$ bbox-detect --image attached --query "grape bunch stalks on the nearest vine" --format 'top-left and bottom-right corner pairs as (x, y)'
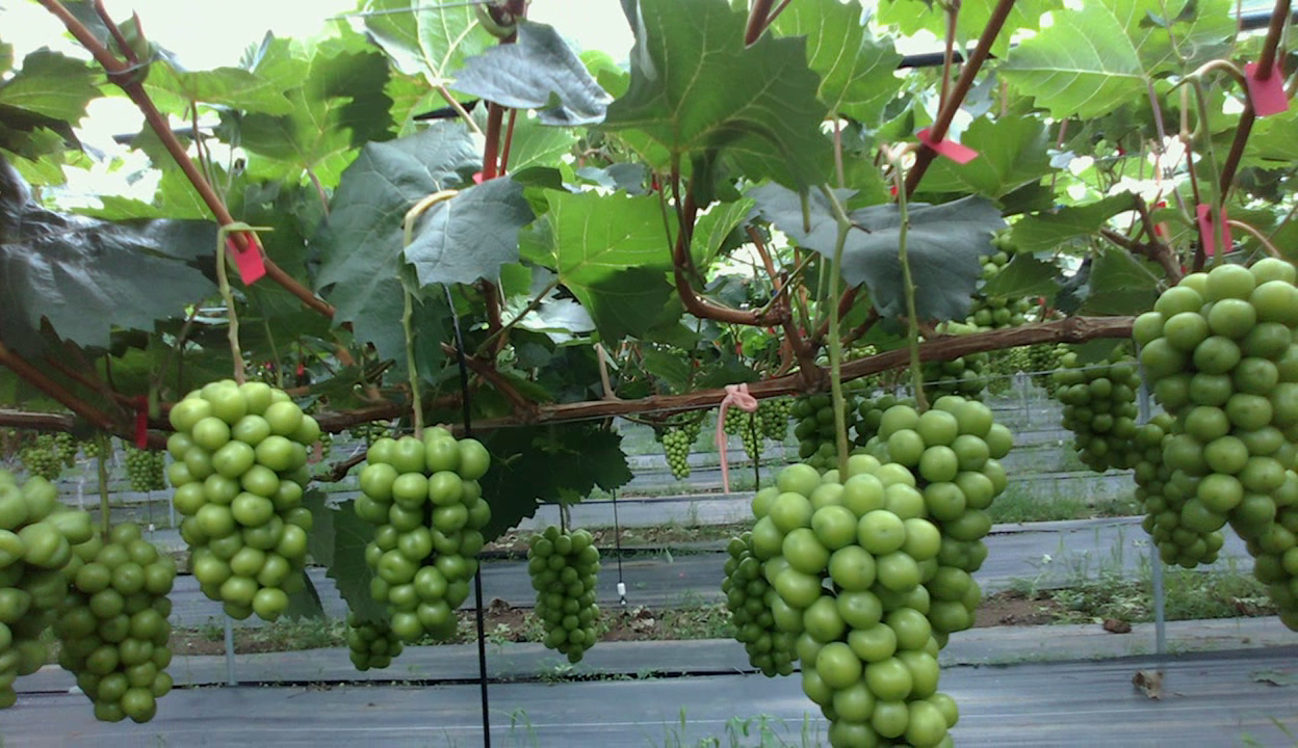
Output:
(816, 184), (854, 482)
(892, 158), (930, 415)
(400, 291), (424, 440)
(1186, 59), (1244, 268)
(93, 429), (110, 544)
(216, 226), (245, 385)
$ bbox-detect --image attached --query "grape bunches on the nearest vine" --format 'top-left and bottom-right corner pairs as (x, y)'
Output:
(751, 455), (959, 747)
(354, 426), (491, 645)
(51, 523), (178, 724)
(862, 396), (1014, 649)
(166, 378), (320, 622)
(1130, 258), (1296, 539)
